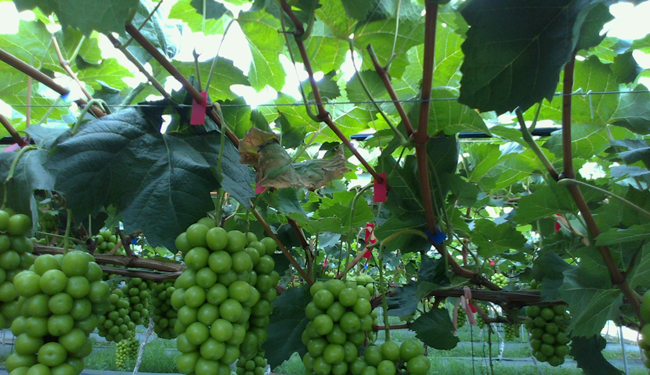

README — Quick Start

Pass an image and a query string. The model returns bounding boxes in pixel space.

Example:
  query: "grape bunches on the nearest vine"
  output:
[170,217,280,374]
[0,207,34,330]
[351,340,432,374]
[5,250,110,374]
[302,274,374,374]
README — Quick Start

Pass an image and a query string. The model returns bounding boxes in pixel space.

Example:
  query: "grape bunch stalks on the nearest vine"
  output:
[379,229,427,342]
[342,183,374,283]
[1,145,36,211]
[63,210,72,256]
[213,103,226,227]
